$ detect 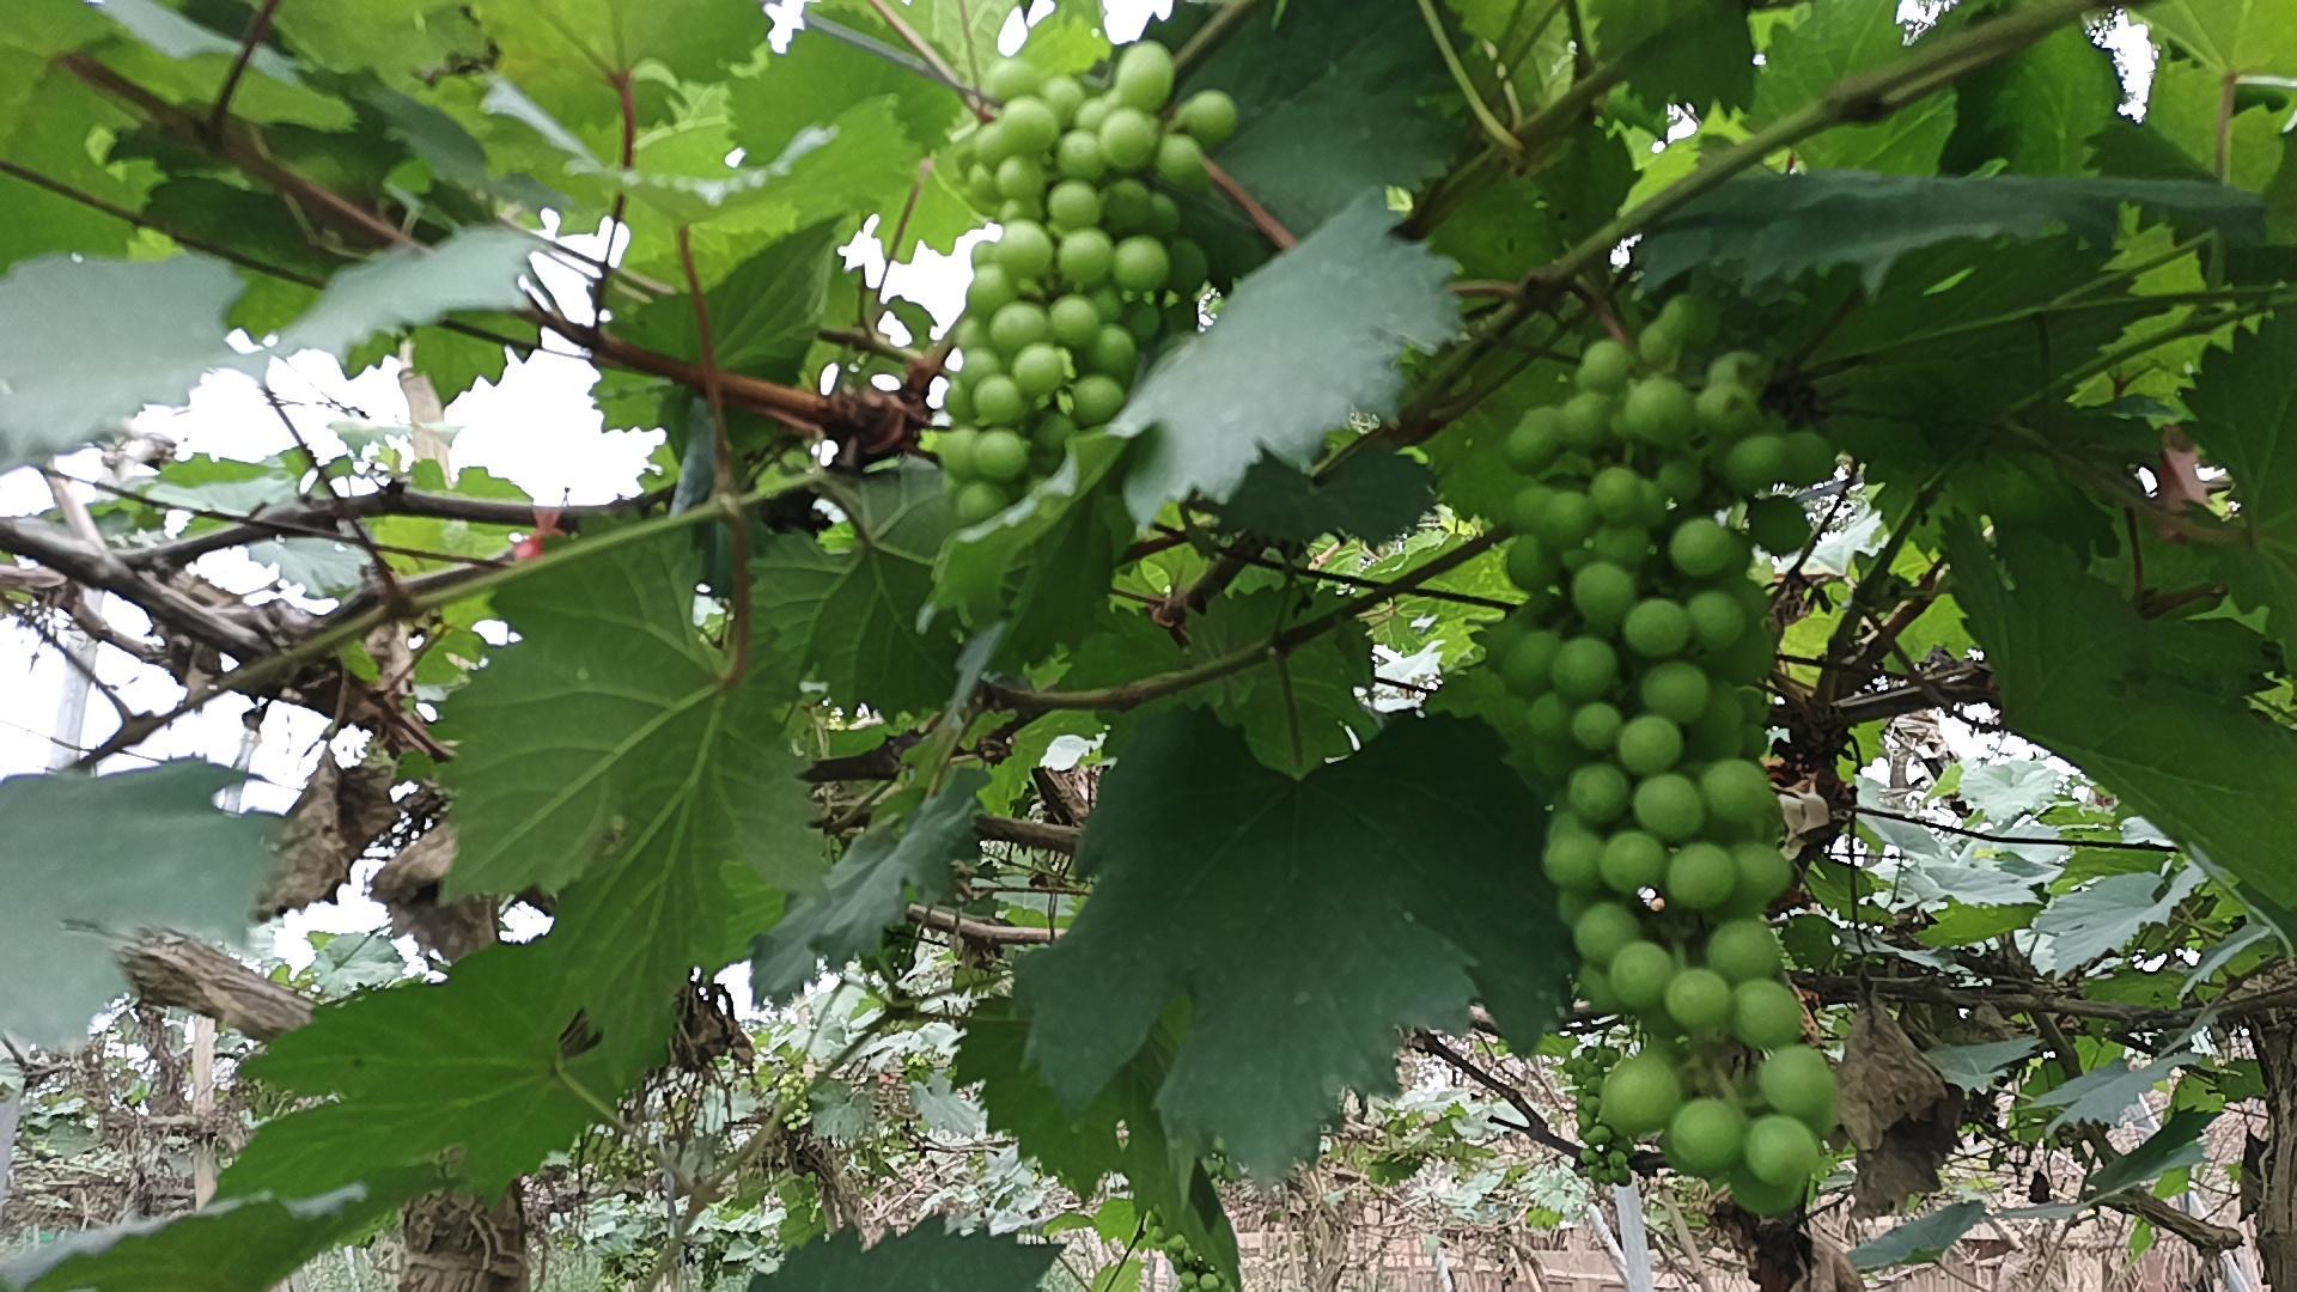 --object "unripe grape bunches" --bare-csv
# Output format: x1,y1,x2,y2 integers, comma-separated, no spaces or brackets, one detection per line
1146,1136,1236,1291
780,1074,809,1130
1562,1046,1639,1184
1492,299,1833,1213
933,41,1236,522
